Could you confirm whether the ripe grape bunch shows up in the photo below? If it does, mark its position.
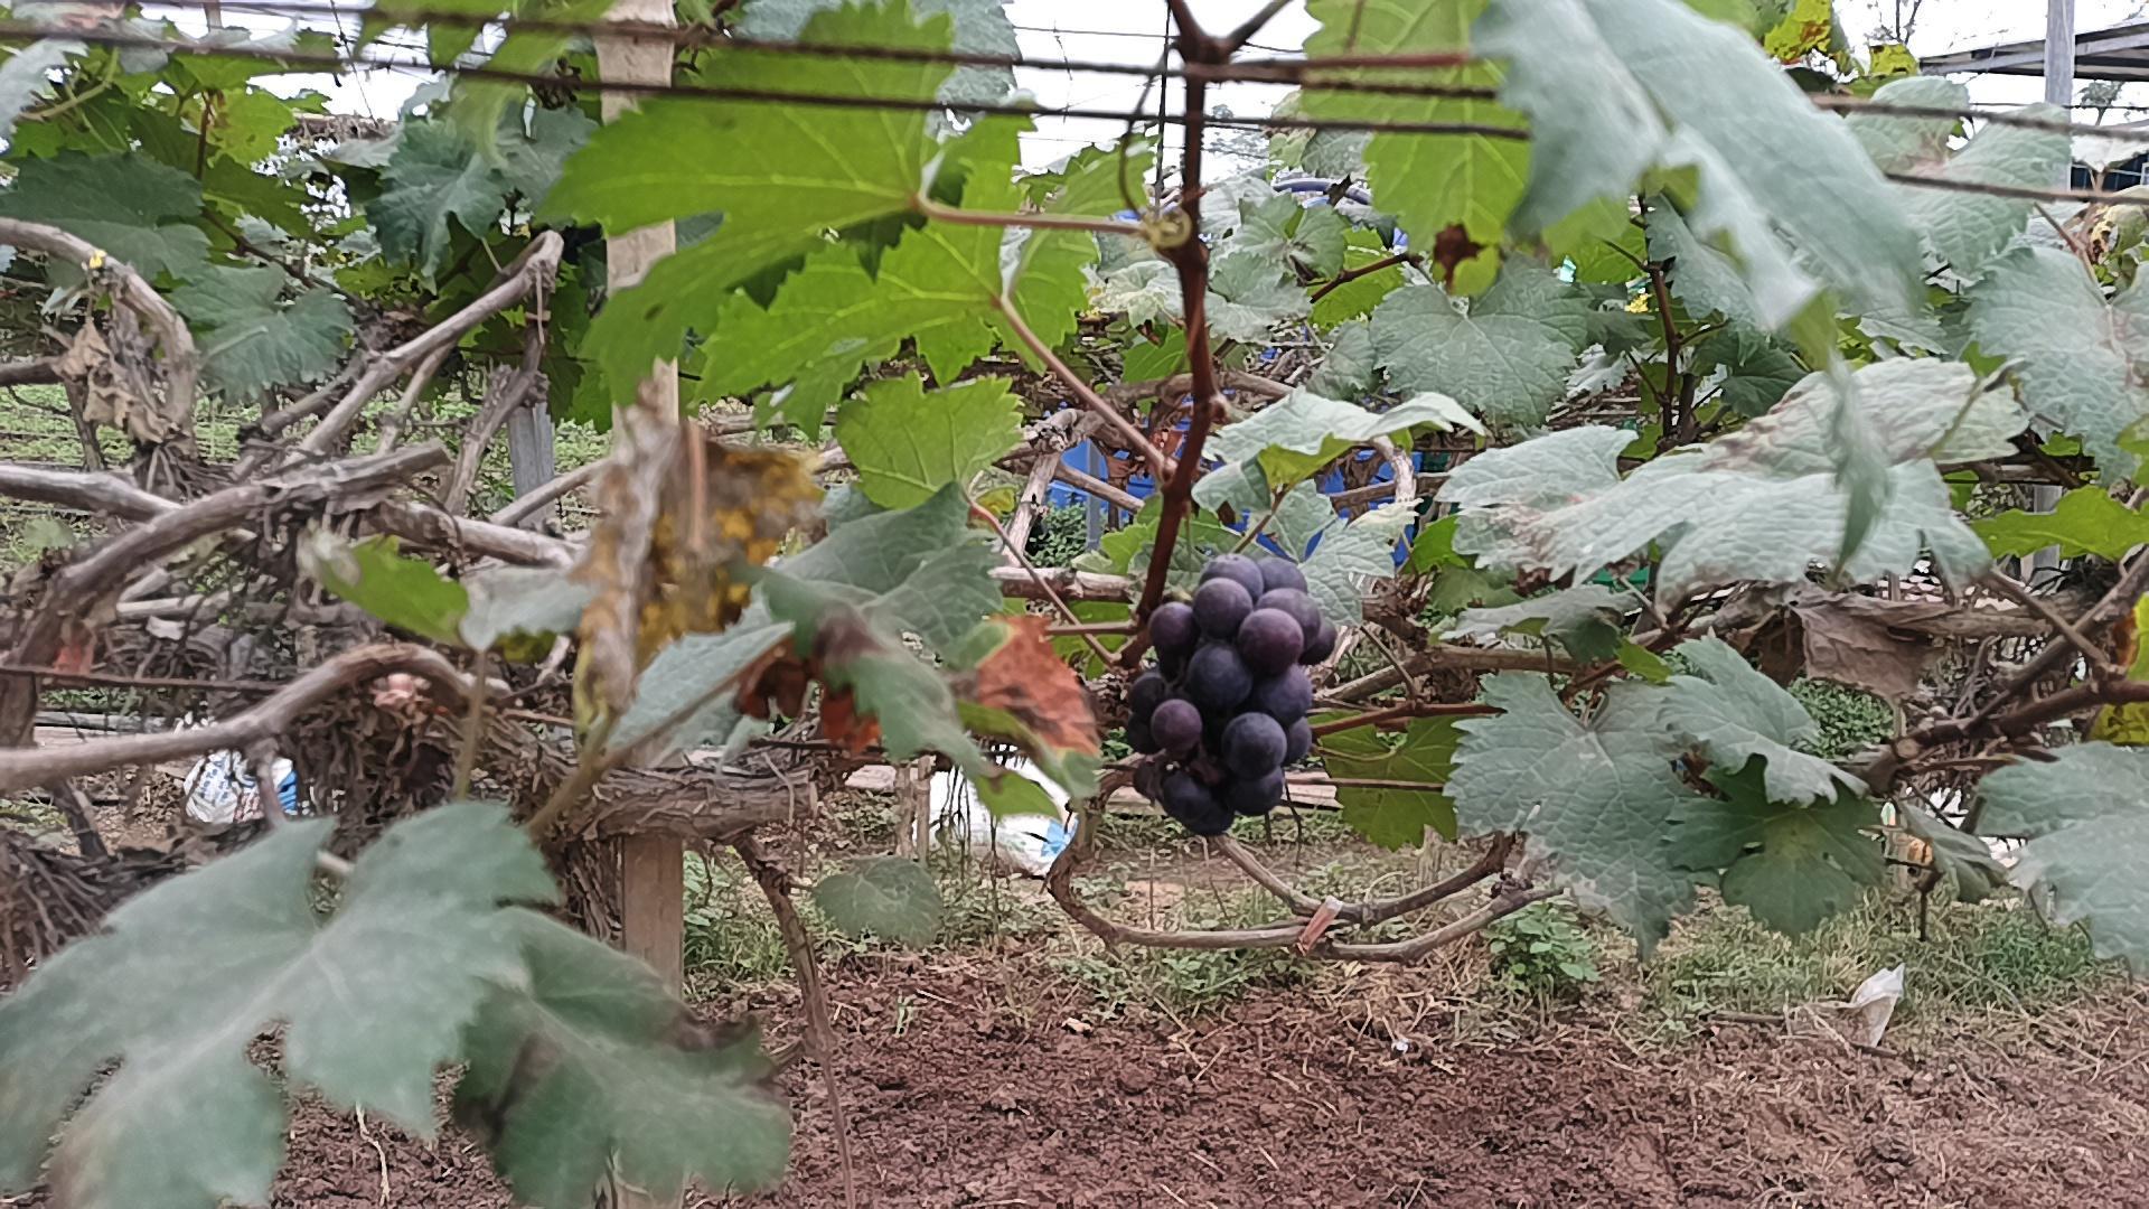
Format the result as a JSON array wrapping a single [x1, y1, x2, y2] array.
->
[[1127, 555, 1336, 836]]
